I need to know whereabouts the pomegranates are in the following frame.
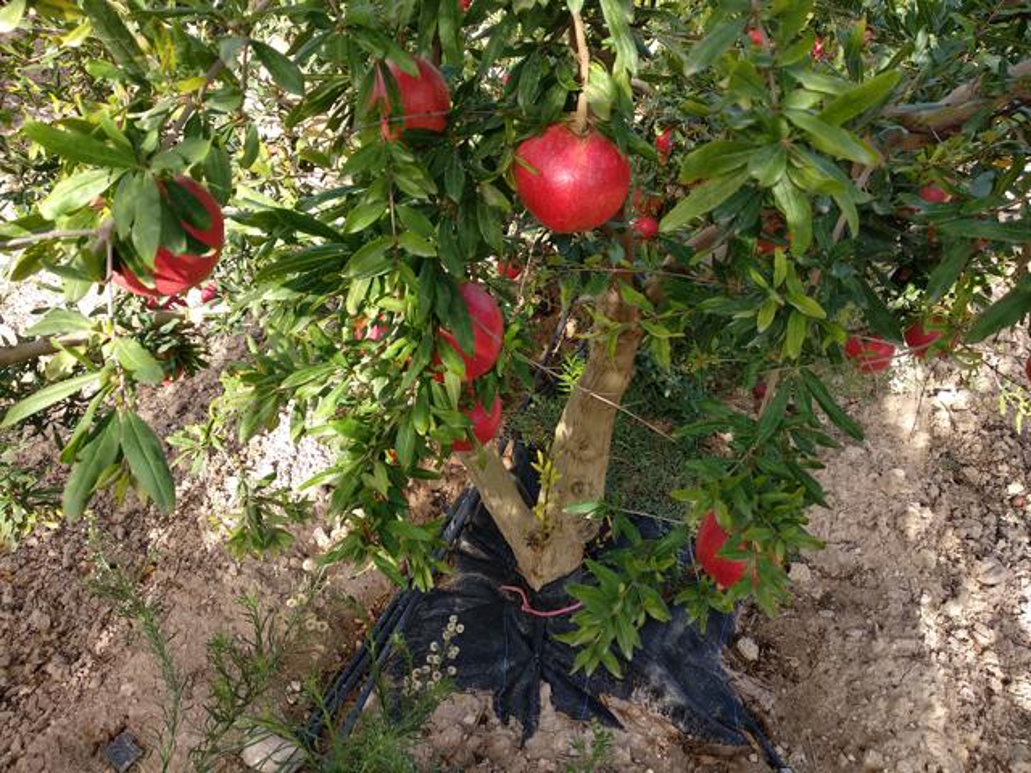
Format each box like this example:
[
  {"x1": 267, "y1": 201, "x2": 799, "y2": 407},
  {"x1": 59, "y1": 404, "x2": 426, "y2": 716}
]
[
  {"x1": 371, "y1": 58, "x2": 449, "y2": 142},
  {"x1": 694, "y1": 509, "x2": 749, "y2": 588},
  {"x1": 438, "y1": 283, "x2": 504, "y2": 382},
  {"x1": 512, "y1": 121, "x2": 631, "y2": 235},
  {"x1": 844, "y1": 335, "x2": 896, "y2": 372},
  {"x1": 631, "y1": 216, "x2": 659, "y2": 238},
  {"x1": 453, "y1": 398, "x2": 503, "y2": 453},
  {"x1": 110, "y1": 176, "x2": 226, "y2": 308},
  {"x1": 902, "y1": 324, "x2": 944, "y2": 356}
]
